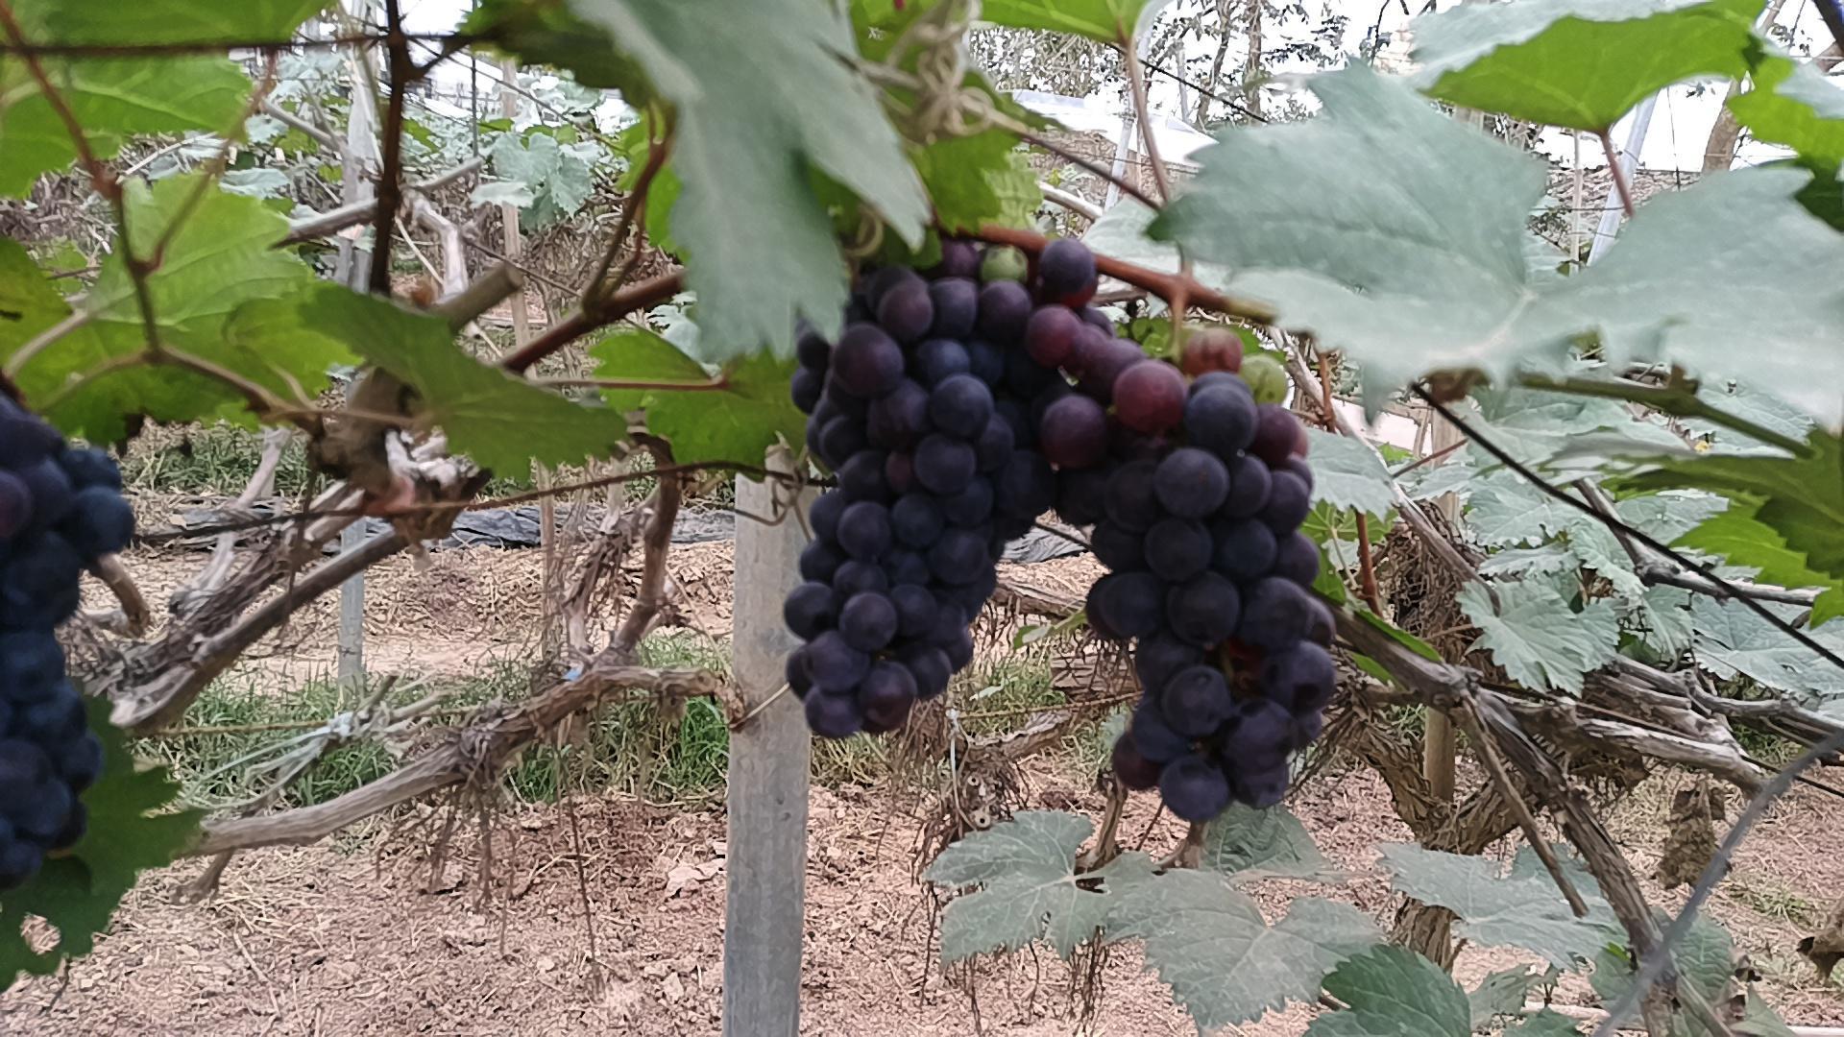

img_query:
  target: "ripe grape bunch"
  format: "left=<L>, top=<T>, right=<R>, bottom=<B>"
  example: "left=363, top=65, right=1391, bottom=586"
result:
left=0, top=377, right=134, bottom=890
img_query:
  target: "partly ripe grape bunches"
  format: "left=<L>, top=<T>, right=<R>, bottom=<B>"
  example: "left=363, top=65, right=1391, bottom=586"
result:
left=783, top=239, right=1097, bottom=737
left=1040, top=310, right=1334, bottom=824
